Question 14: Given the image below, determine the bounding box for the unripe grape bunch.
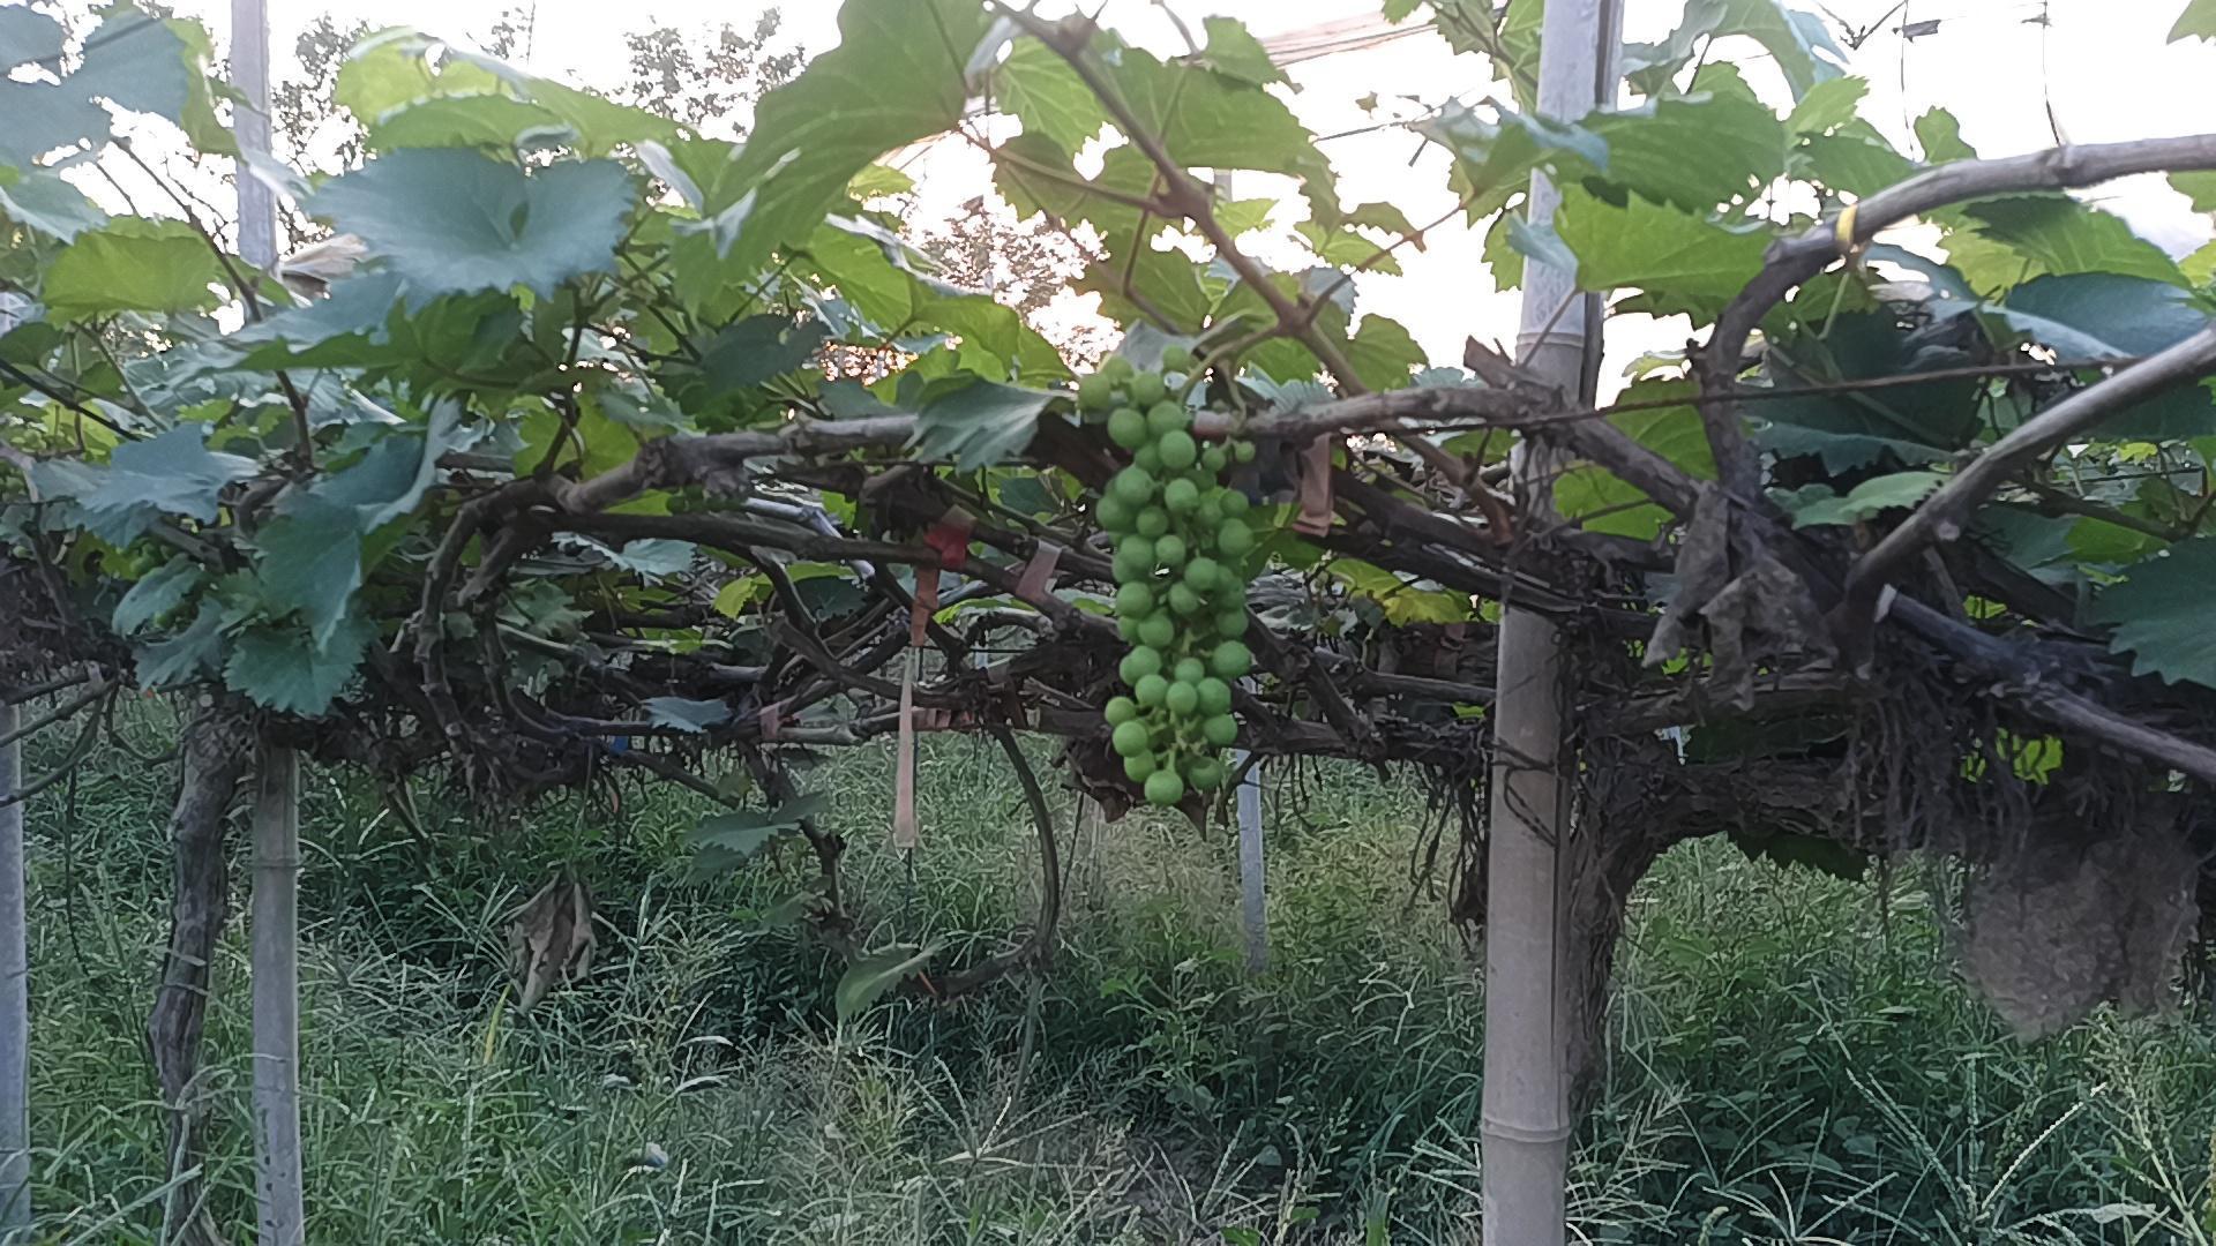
[1080,359,1255,804]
